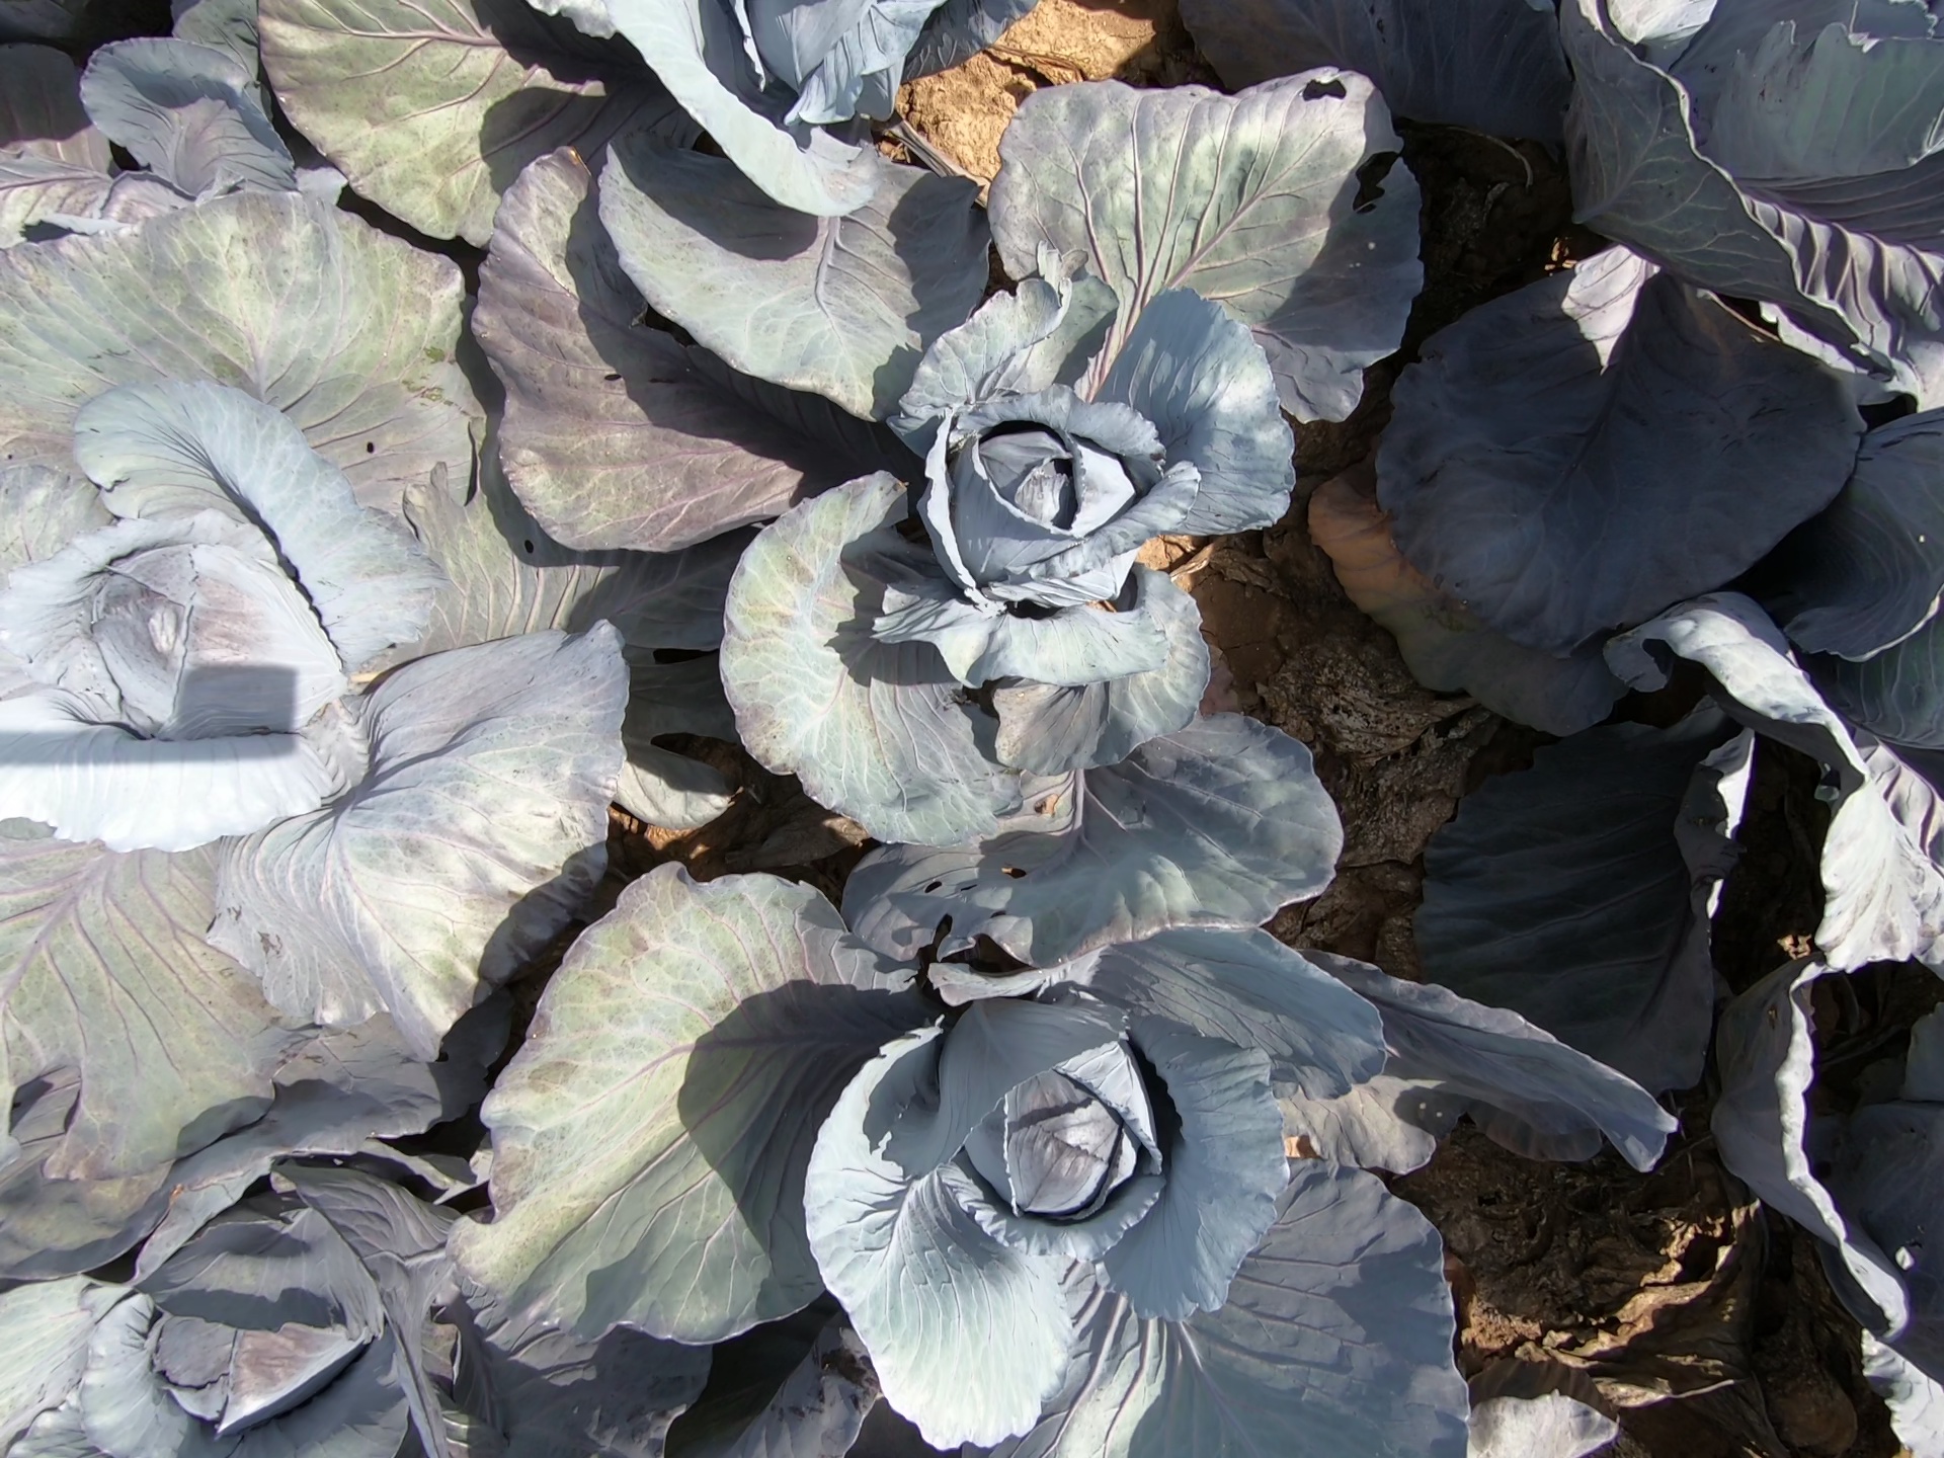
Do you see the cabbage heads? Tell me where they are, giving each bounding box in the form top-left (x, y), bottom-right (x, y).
top-left (946, 1005), bottom-right (1149, 1218)
top-left (90, 540), bottom-right (327, 742)
top-left (155, 1204), bottom-right (382, 1426)
top-left (742, 2), bottom-right (899, 96)
top-left (957, 422), bottom-right (1139, 583)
